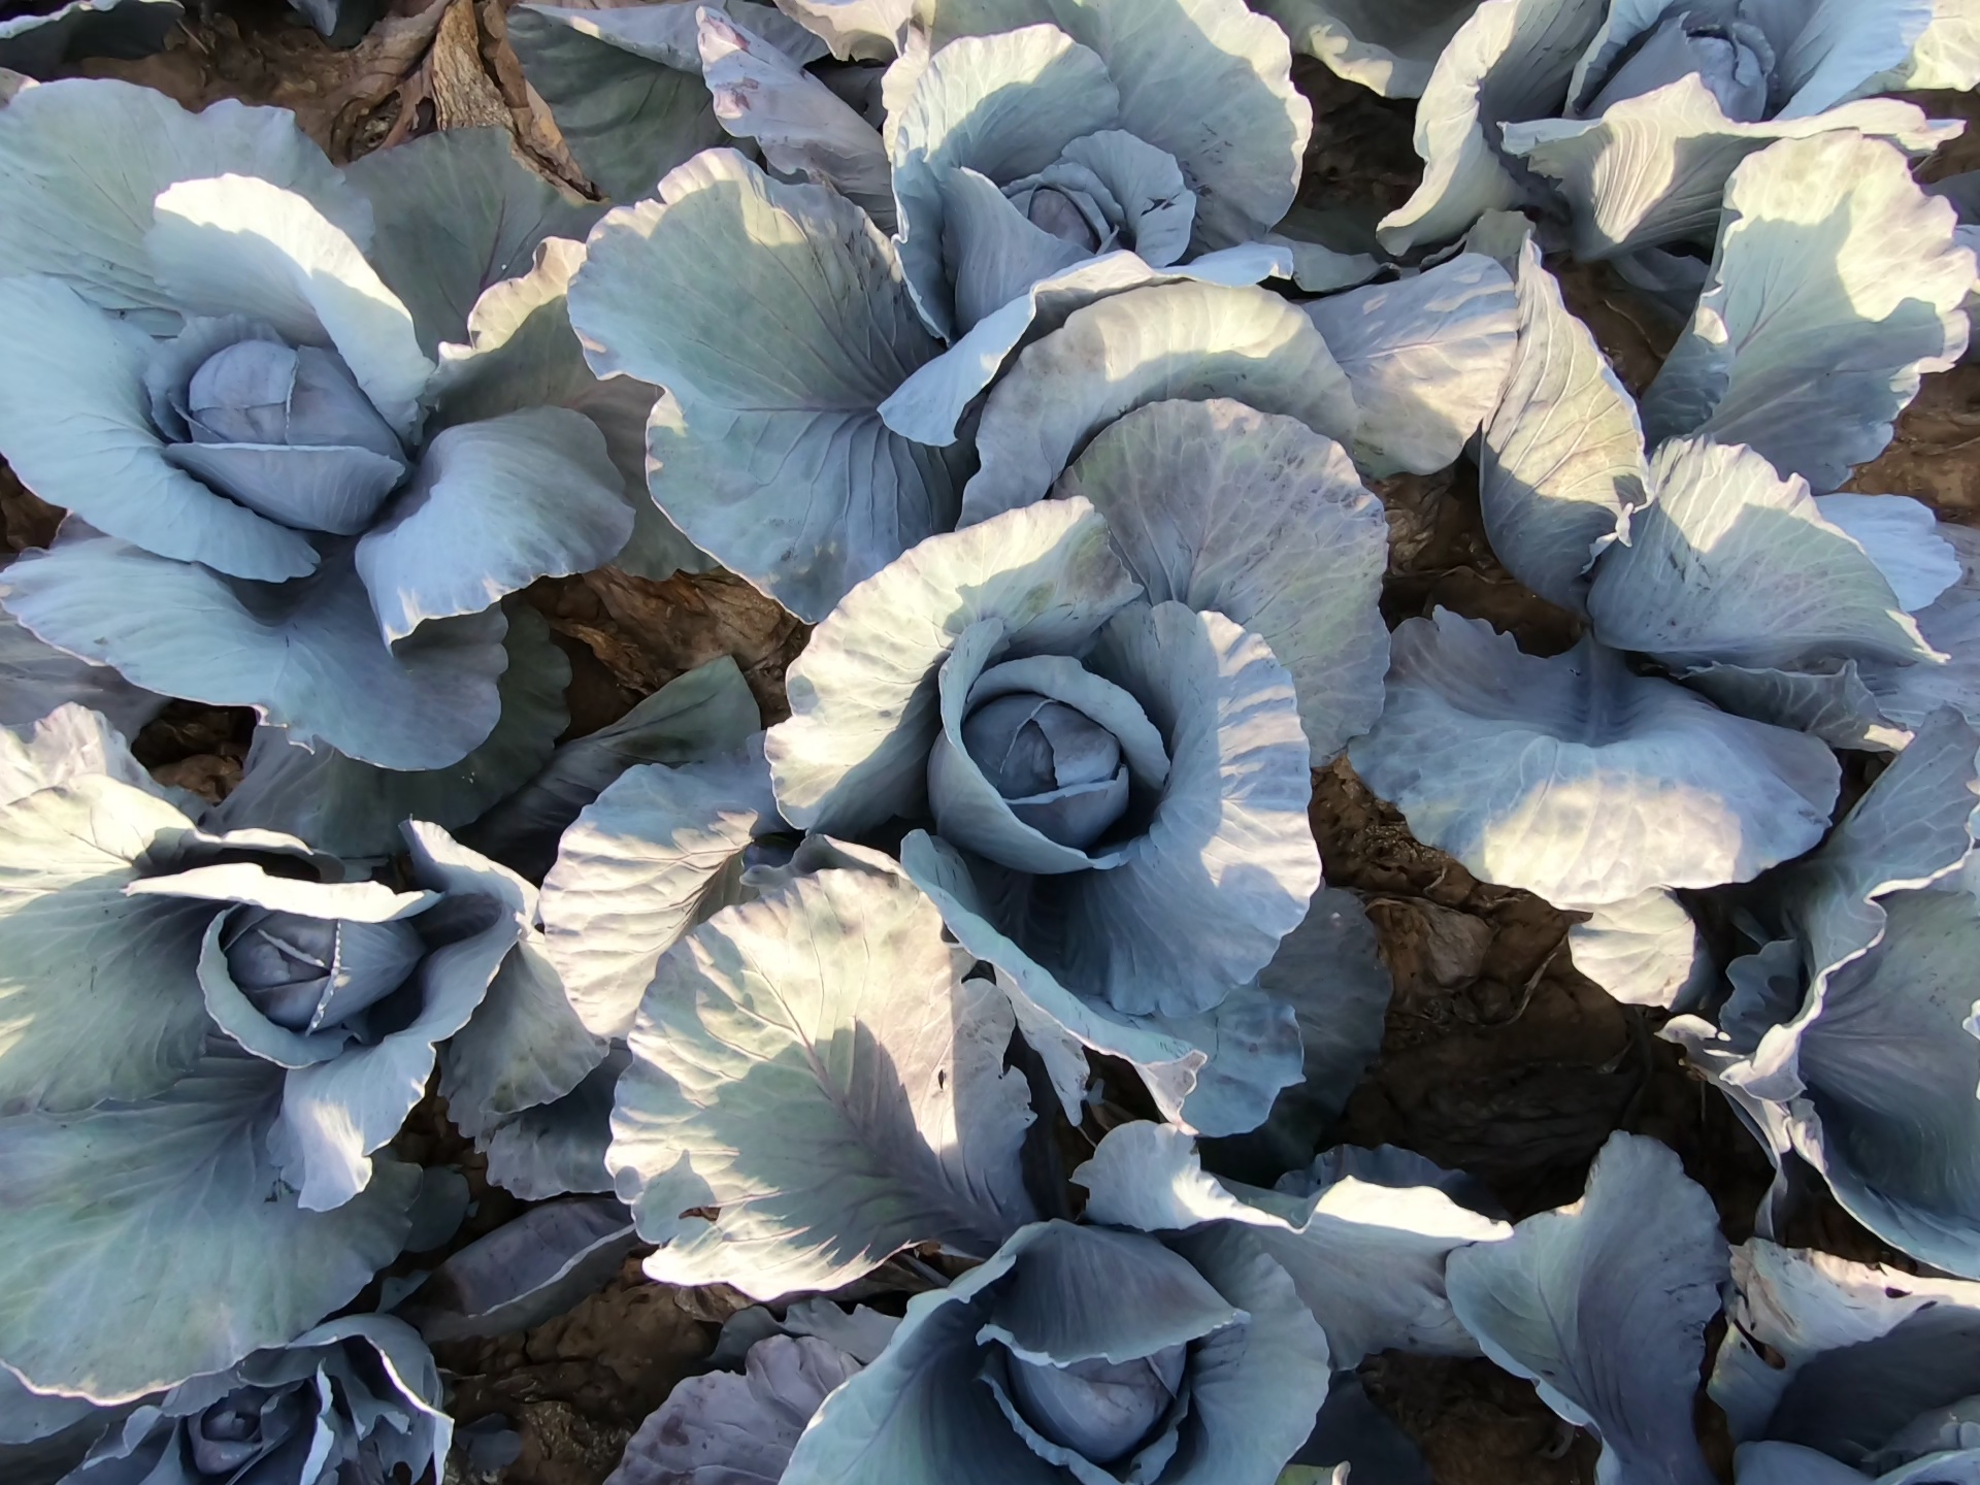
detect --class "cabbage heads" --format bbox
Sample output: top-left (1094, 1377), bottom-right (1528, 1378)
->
top-left (958, 685), bottom-right (1130, 852)
top-left (1027, 1263), bottom-right (1183, 1457)
top-left (180, 333), bottom-right (390, 517)
top-left (180, 1372), bottom-right (297, 1466)
top-left (1607, 35), bottom-right (1769, 178)
top-left (977, 180), bottom-right (1120, 328)
top-left (213, 887), bottom-right (406, 1022)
